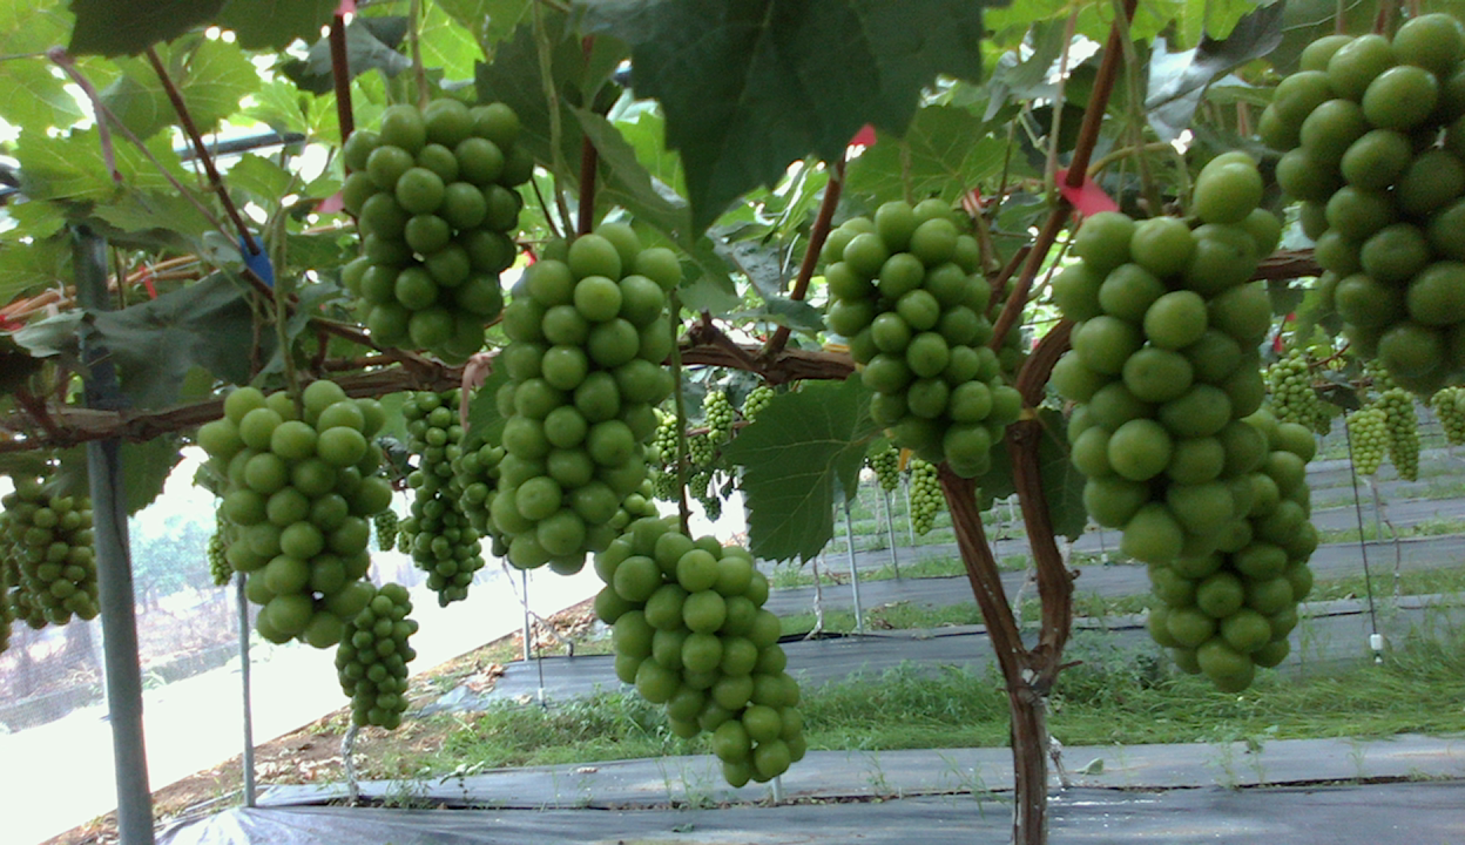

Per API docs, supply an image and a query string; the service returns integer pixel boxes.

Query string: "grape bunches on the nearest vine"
[342,97,534,369]
[197,380,392,647]
[593,515,809,787]
[491,223,681,575]
[1257,11,1464,392]
[822,200,1022,476]
[1147,411,1315,692]
[1052,149,1282,563]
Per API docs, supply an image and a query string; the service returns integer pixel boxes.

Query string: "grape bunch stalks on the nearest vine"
[668,295,689,538]
[269,196,328,419]
[407,1,426,107]
[531,1,575,246]
[1107,0,1164,221]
